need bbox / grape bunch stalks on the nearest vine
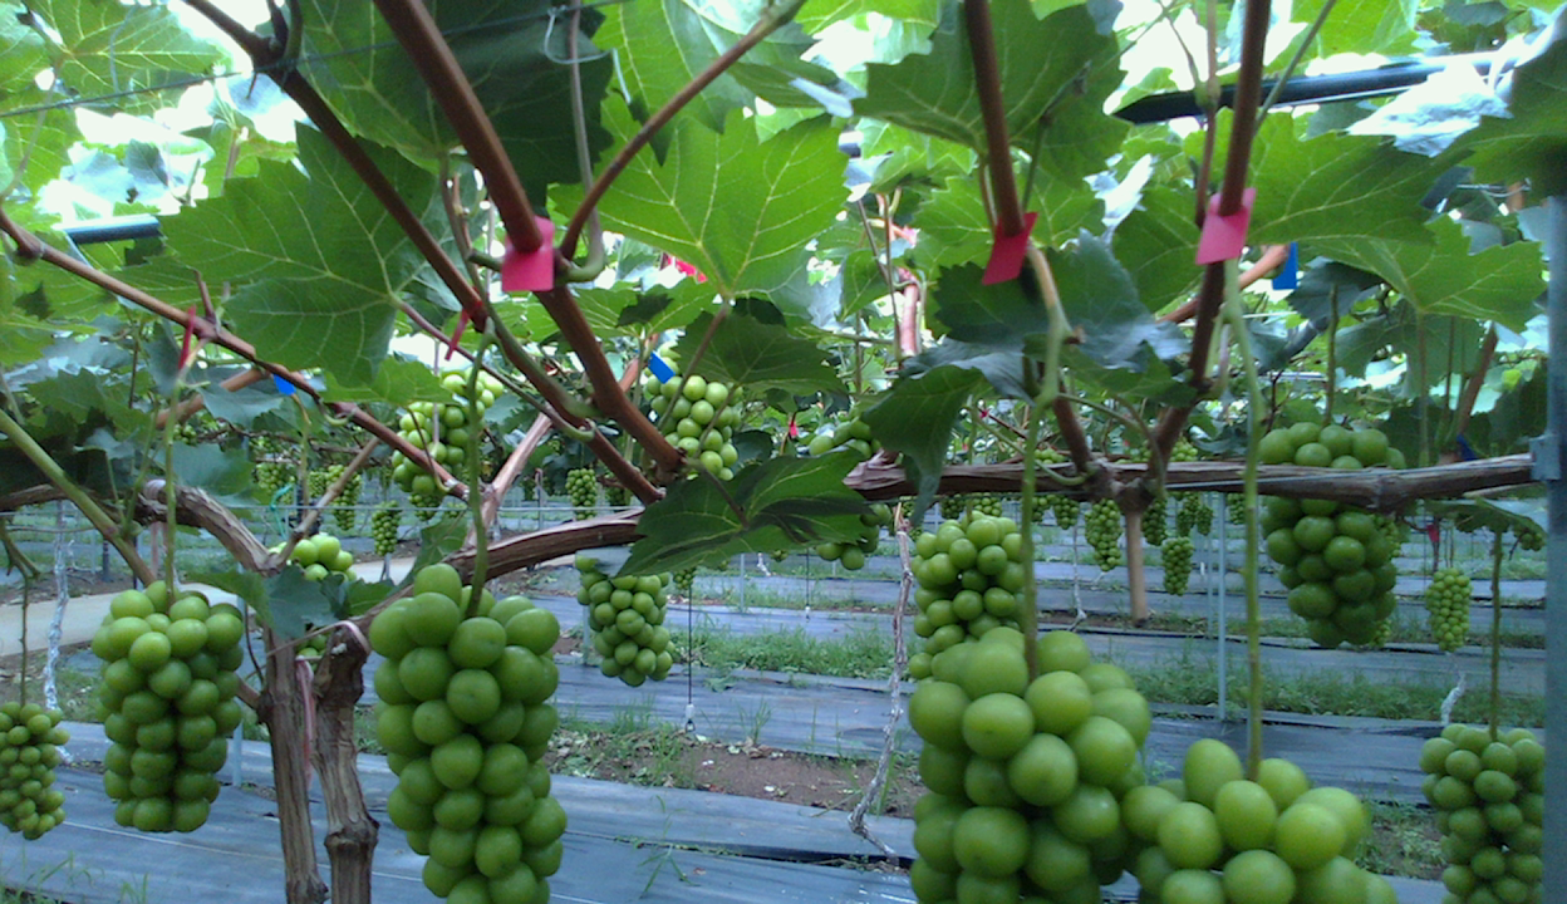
[1021,251,1082,677]
[164,347,201,604]
[1204,262,1263,780]
[466,323,512,616]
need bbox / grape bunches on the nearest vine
[369,562,568,903]
[88,580,246,835]
[908,627,1150,903]
[1121,737,1397,903]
